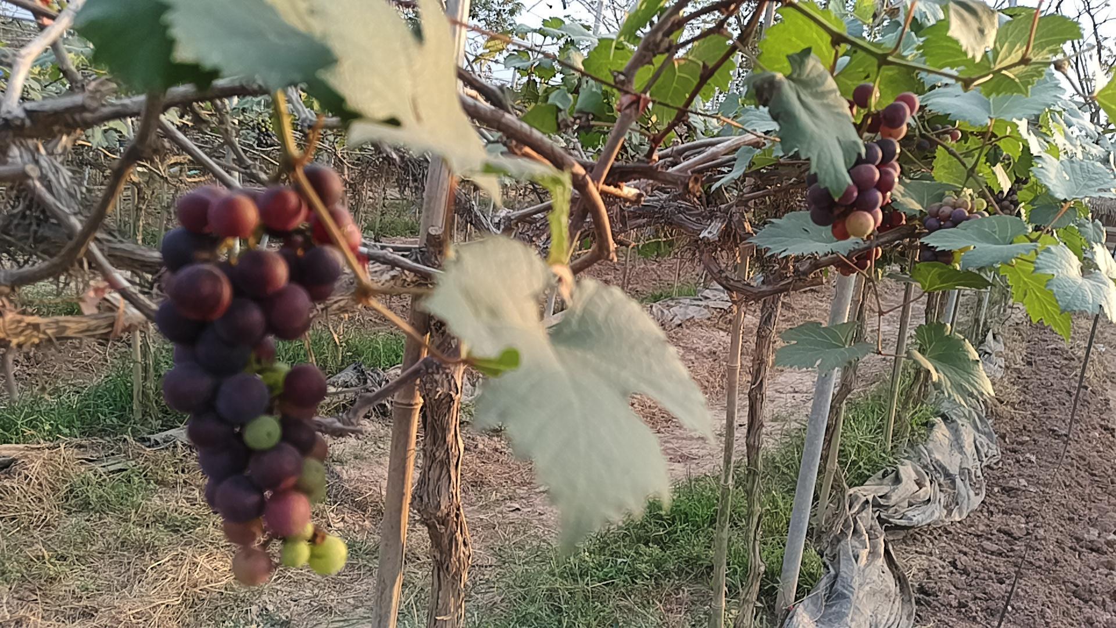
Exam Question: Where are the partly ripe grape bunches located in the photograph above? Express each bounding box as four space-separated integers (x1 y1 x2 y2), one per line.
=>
918 195 990 265
154 165 362 585
916 124 963 154
804 84 918 240
833 209 907 277
987 169 1030 219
